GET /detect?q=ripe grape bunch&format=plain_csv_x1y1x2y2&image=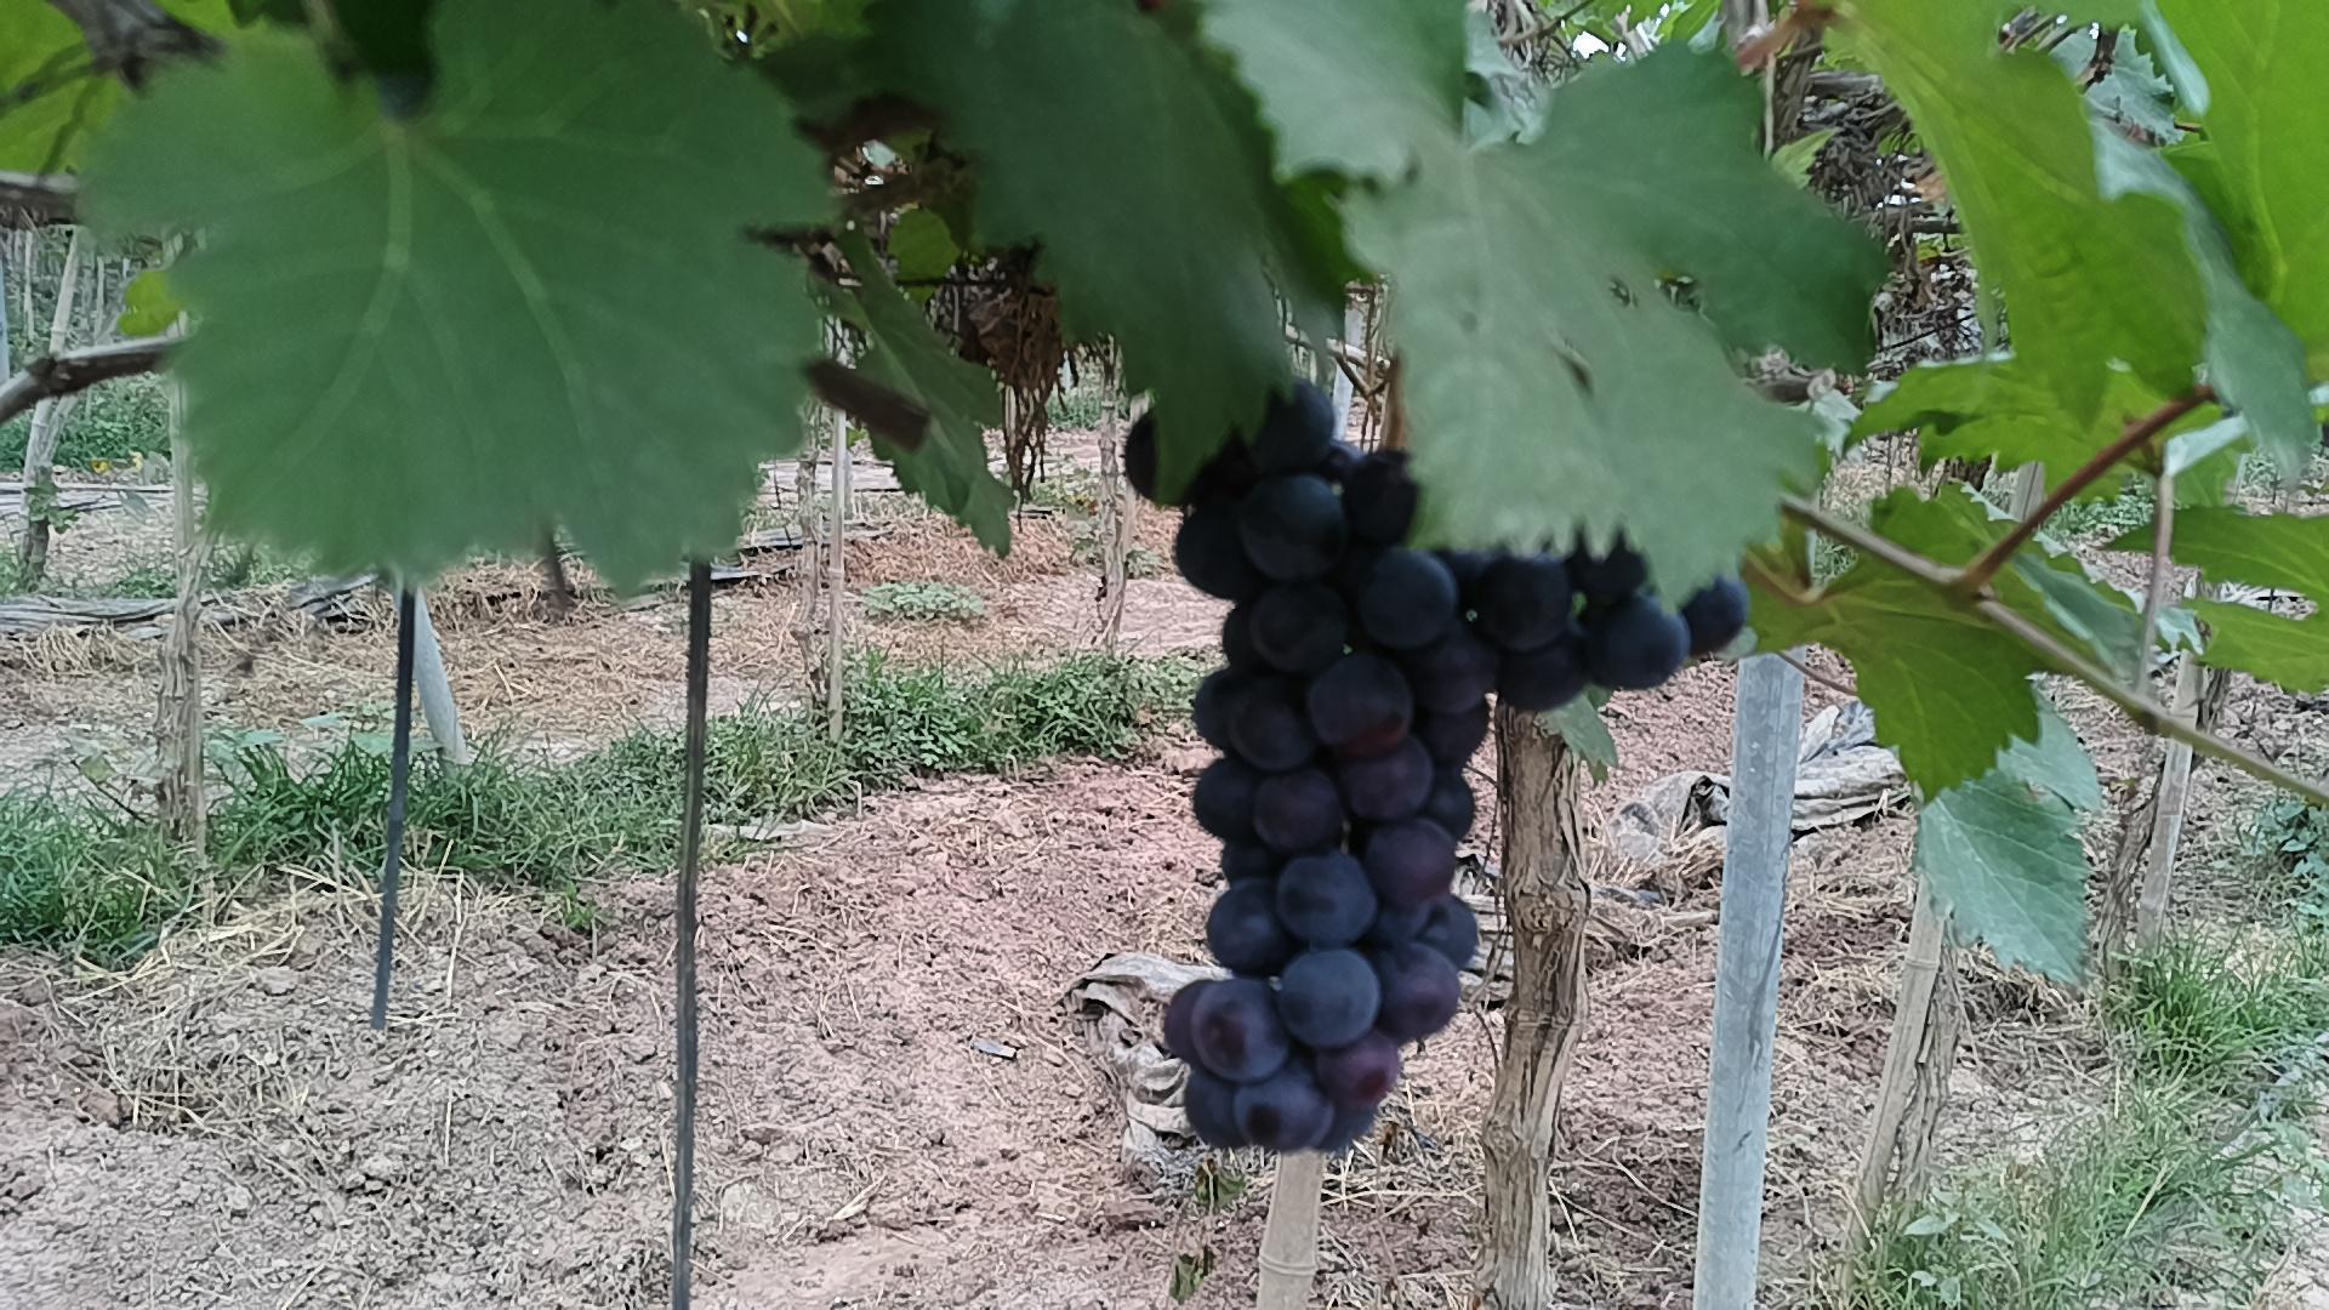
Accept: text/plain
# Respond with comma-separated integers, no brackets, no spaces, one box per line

1124,381,1744,1150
